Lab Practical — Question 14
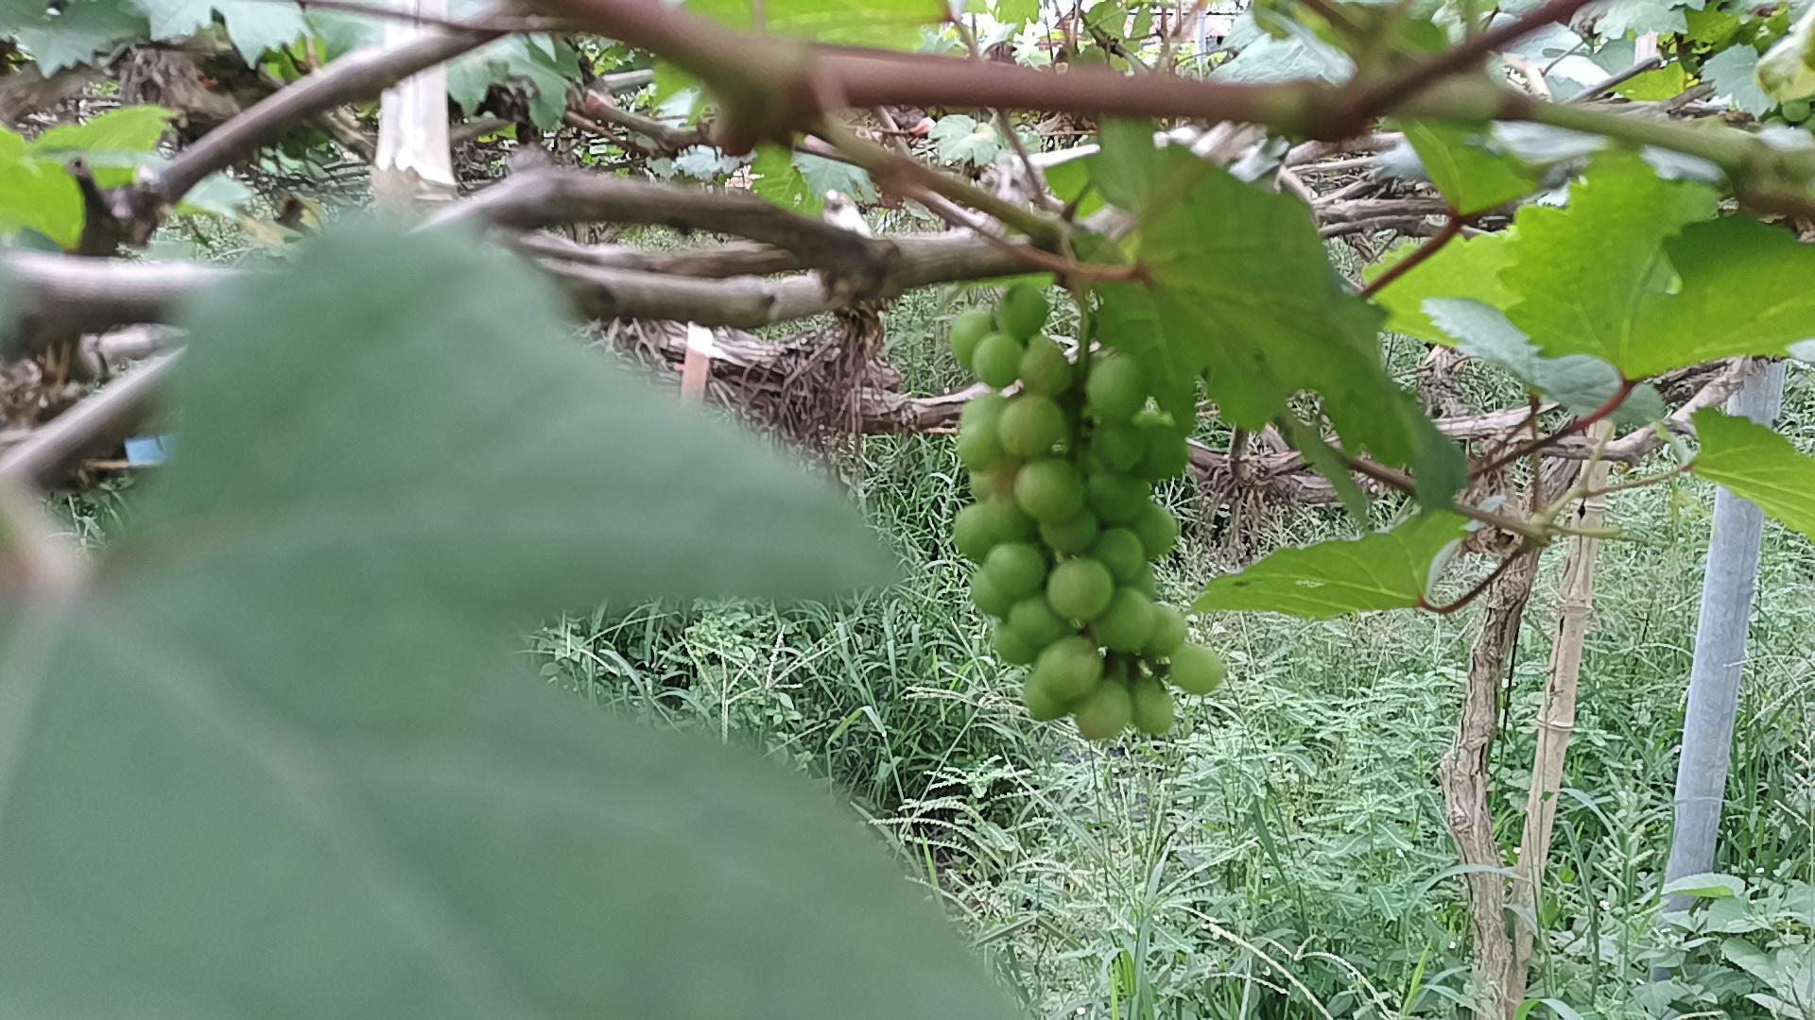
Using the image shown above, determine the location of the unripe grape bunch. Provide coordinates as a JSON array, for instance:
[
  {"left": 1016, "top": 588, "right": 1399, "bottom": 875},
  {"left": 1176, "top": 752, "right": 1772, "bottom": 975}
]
[{"left": 952, "top": 286, "right": 1223, "bottom": 739}]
